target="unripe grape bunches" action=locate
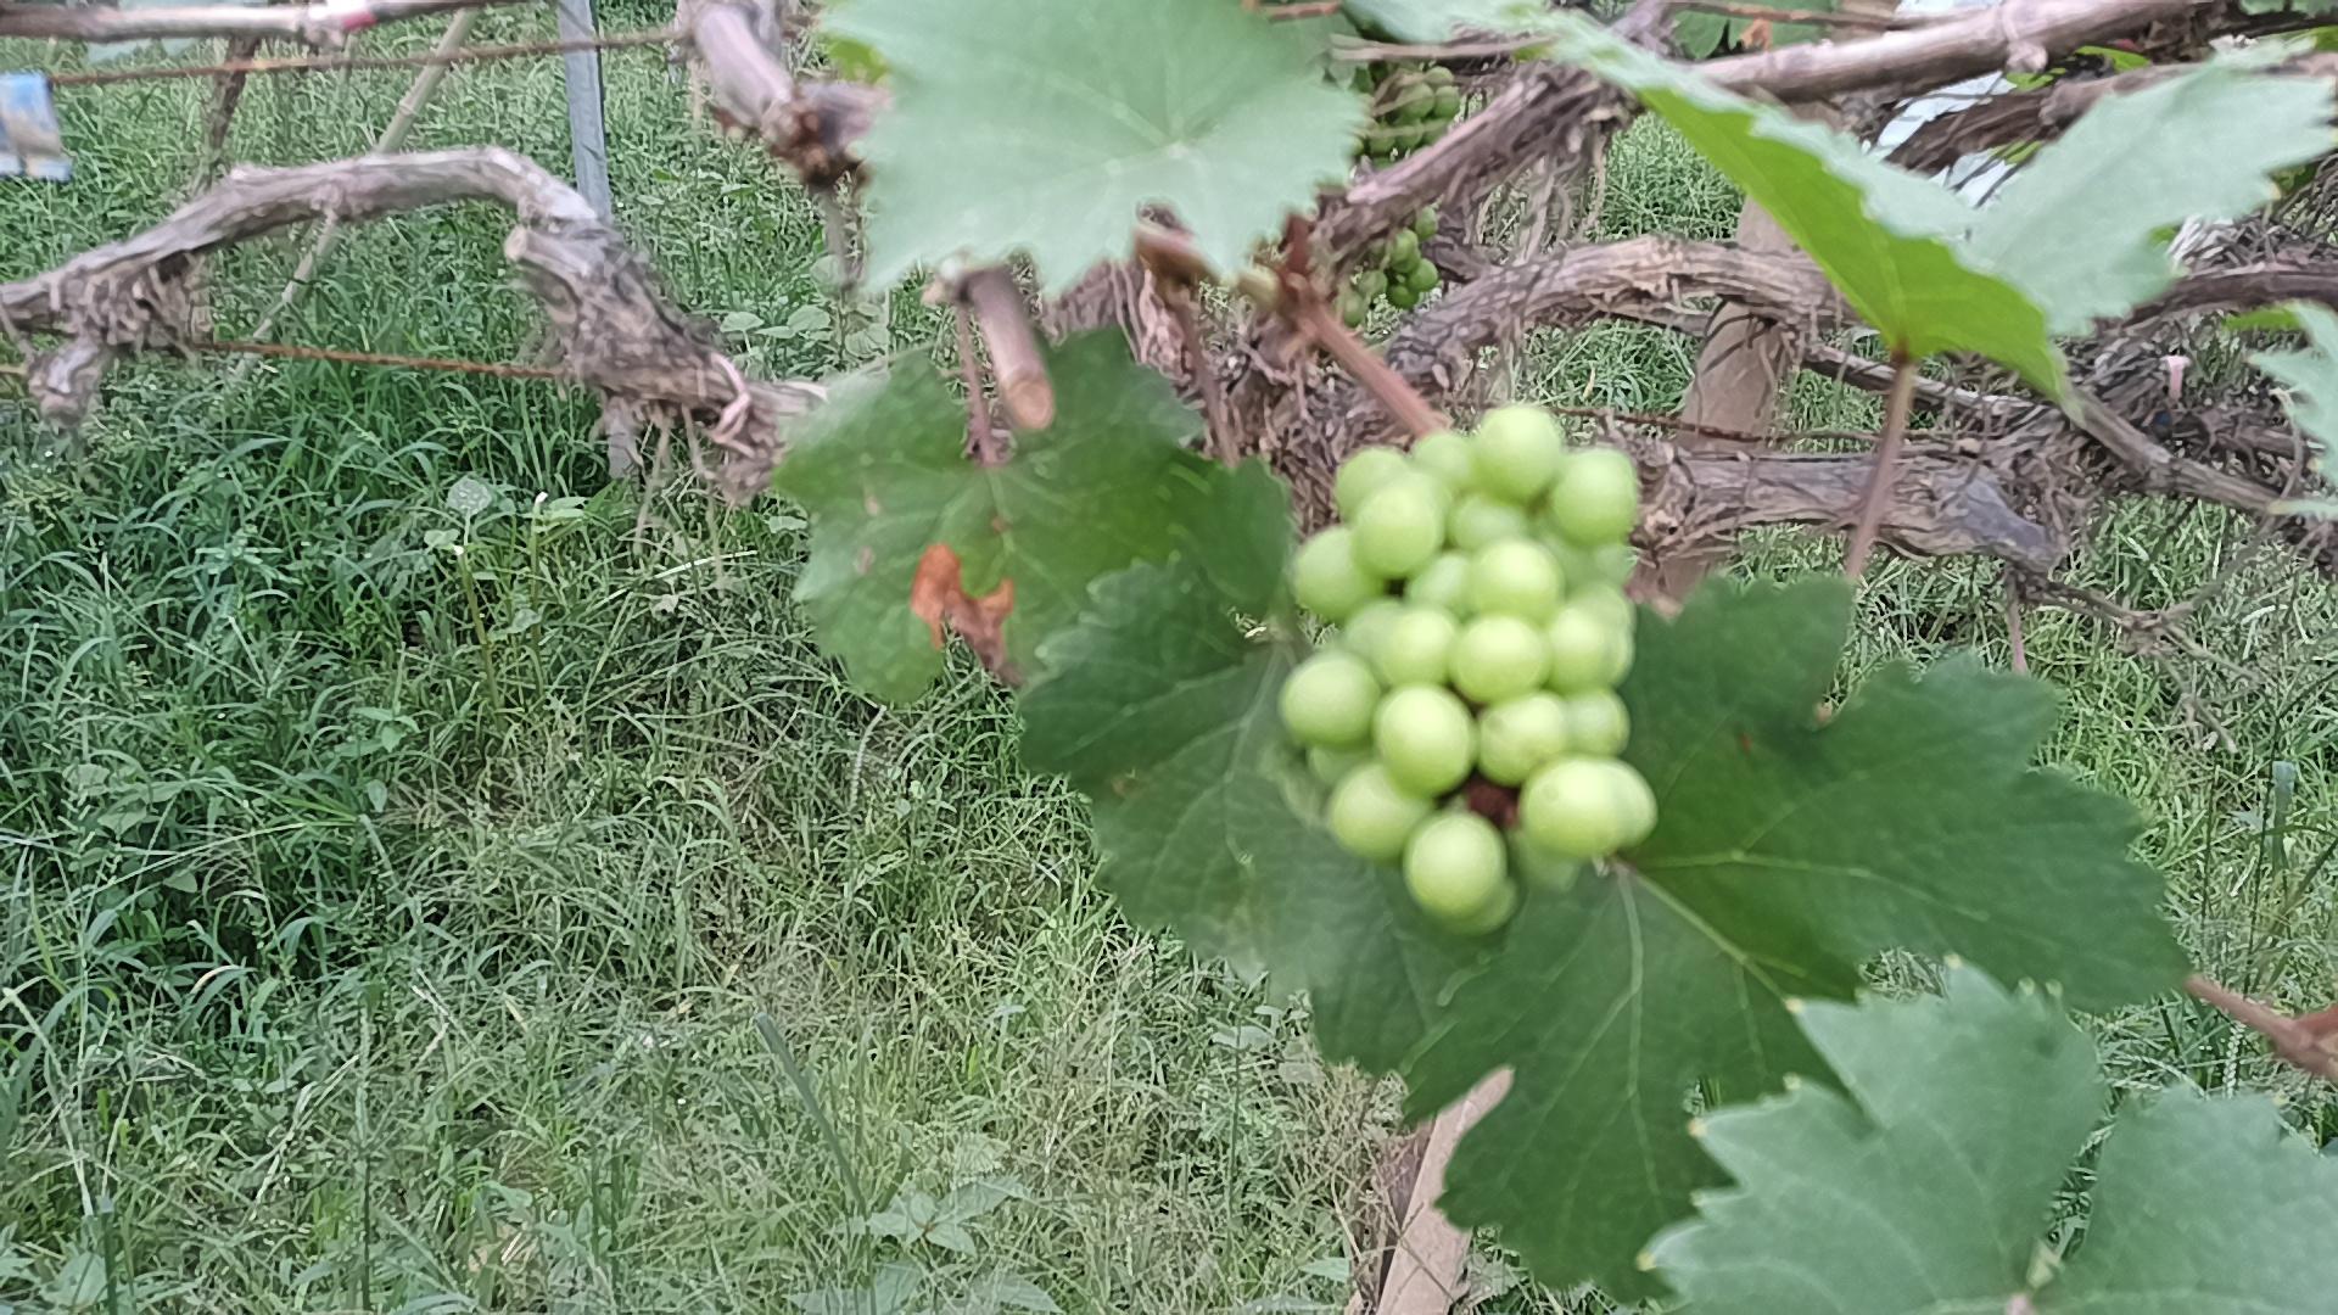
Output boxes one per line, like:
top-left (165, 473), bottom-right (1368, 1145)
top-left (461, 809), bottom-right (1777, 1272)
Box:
top-left (1280, 404), bottom-right (1657, 931)
top-left (1337, 60), bottom-right (1462, 325)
